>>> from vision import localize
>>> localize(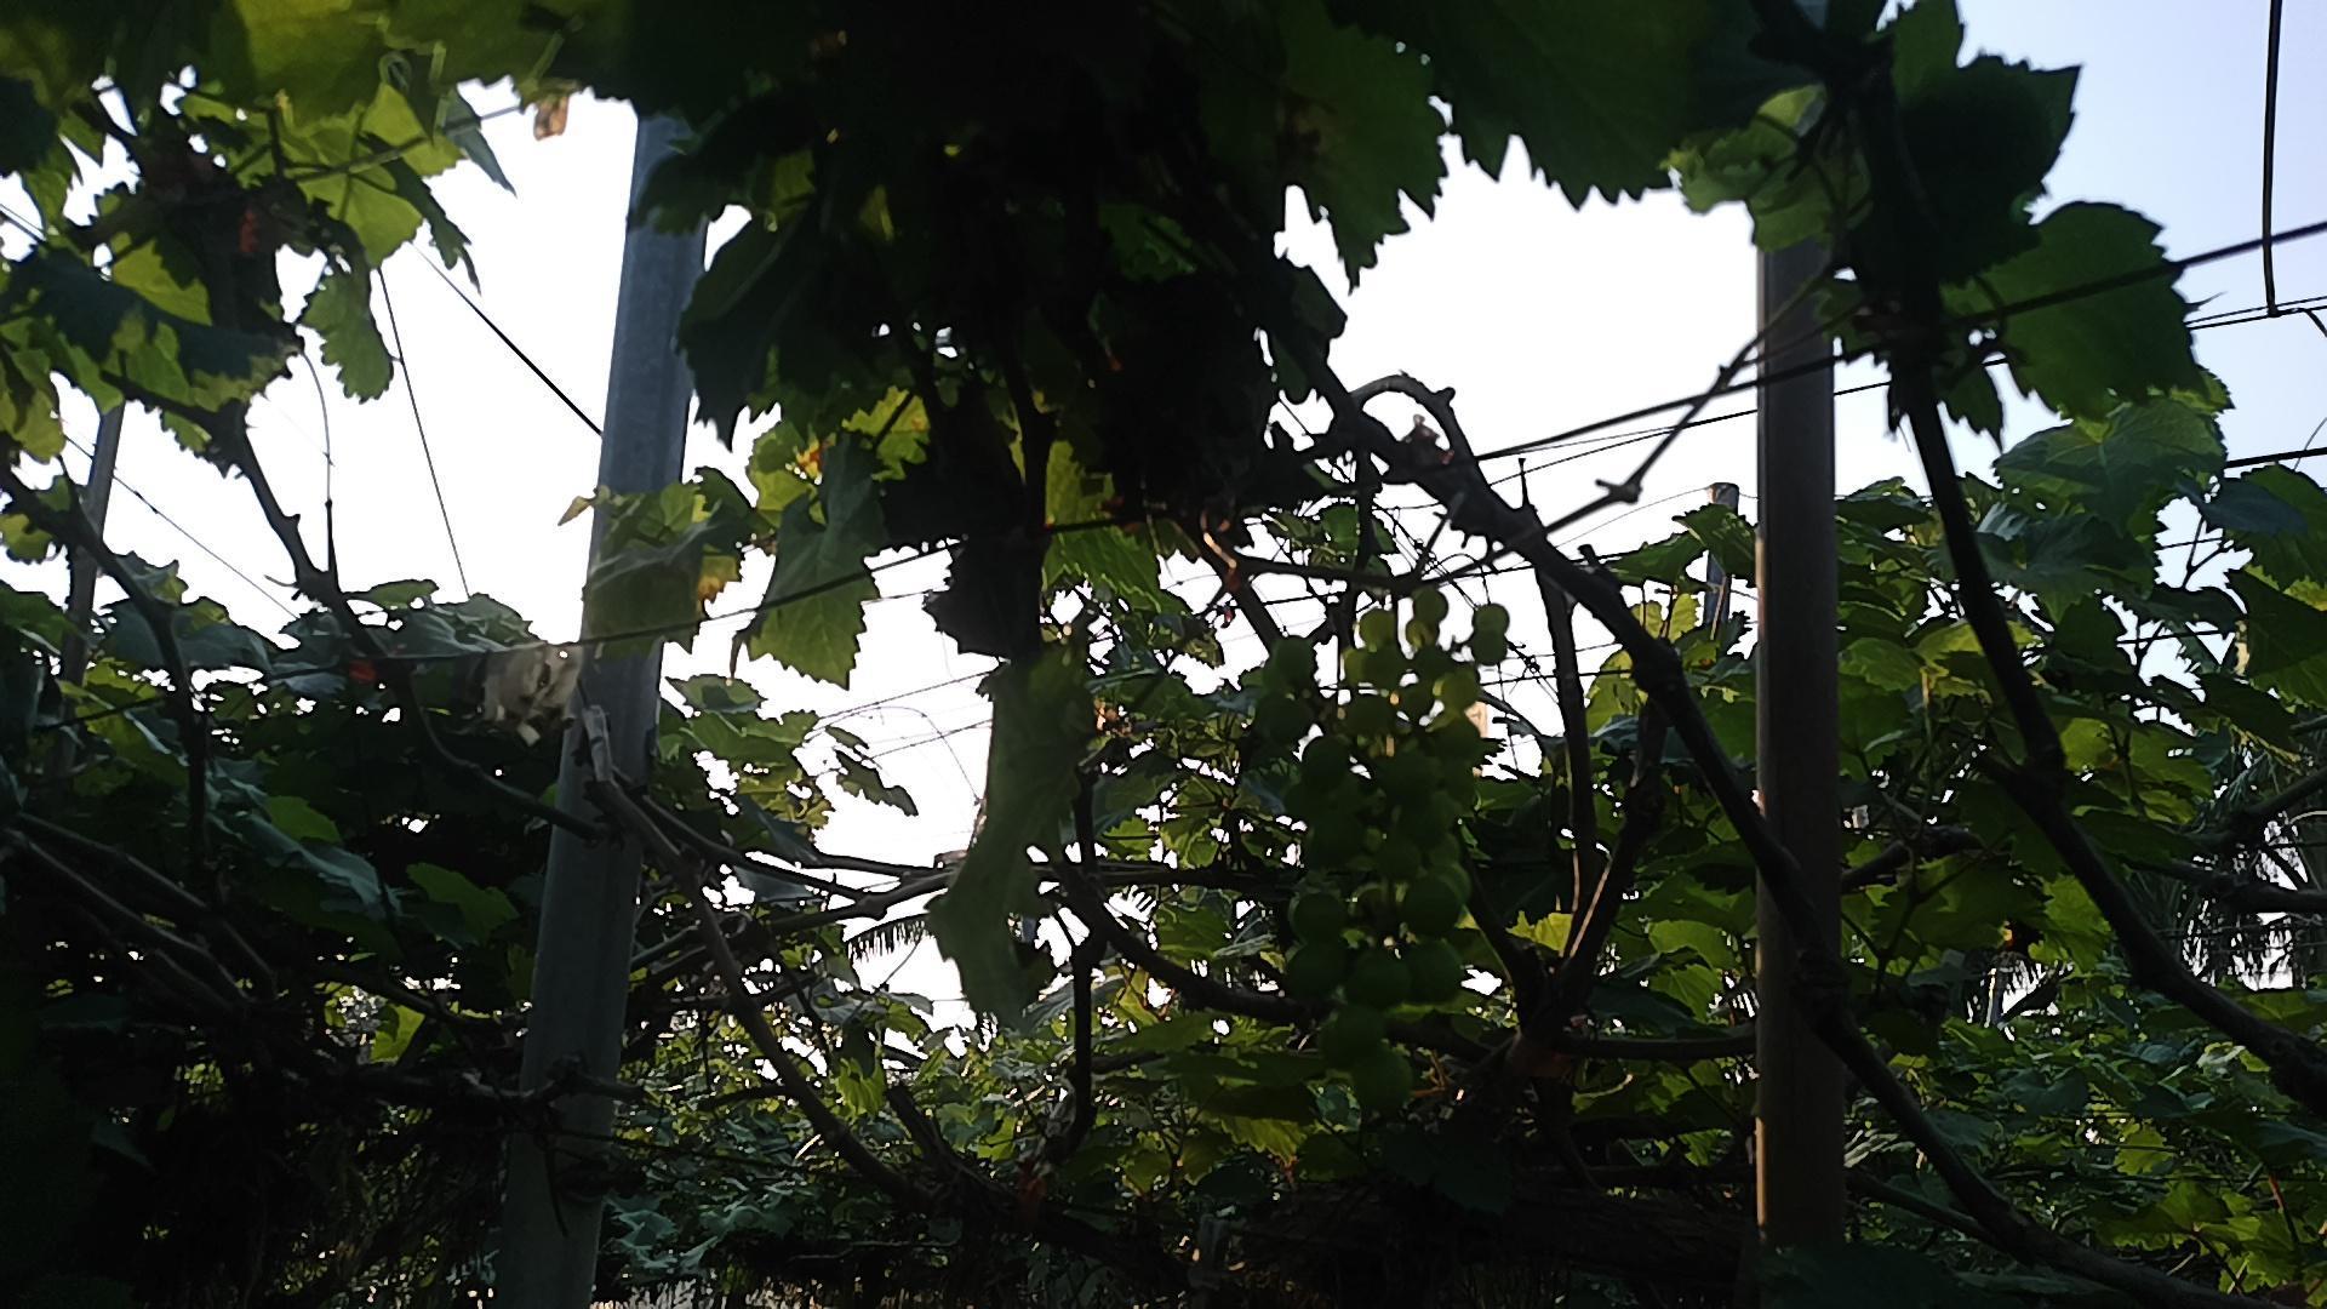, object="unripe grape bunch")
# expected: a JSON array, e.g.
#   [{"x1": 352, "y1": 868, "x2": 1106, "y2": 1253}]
[{"x1": 1252, "y1": 589, "x2": 1508, "y2": 1114}]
